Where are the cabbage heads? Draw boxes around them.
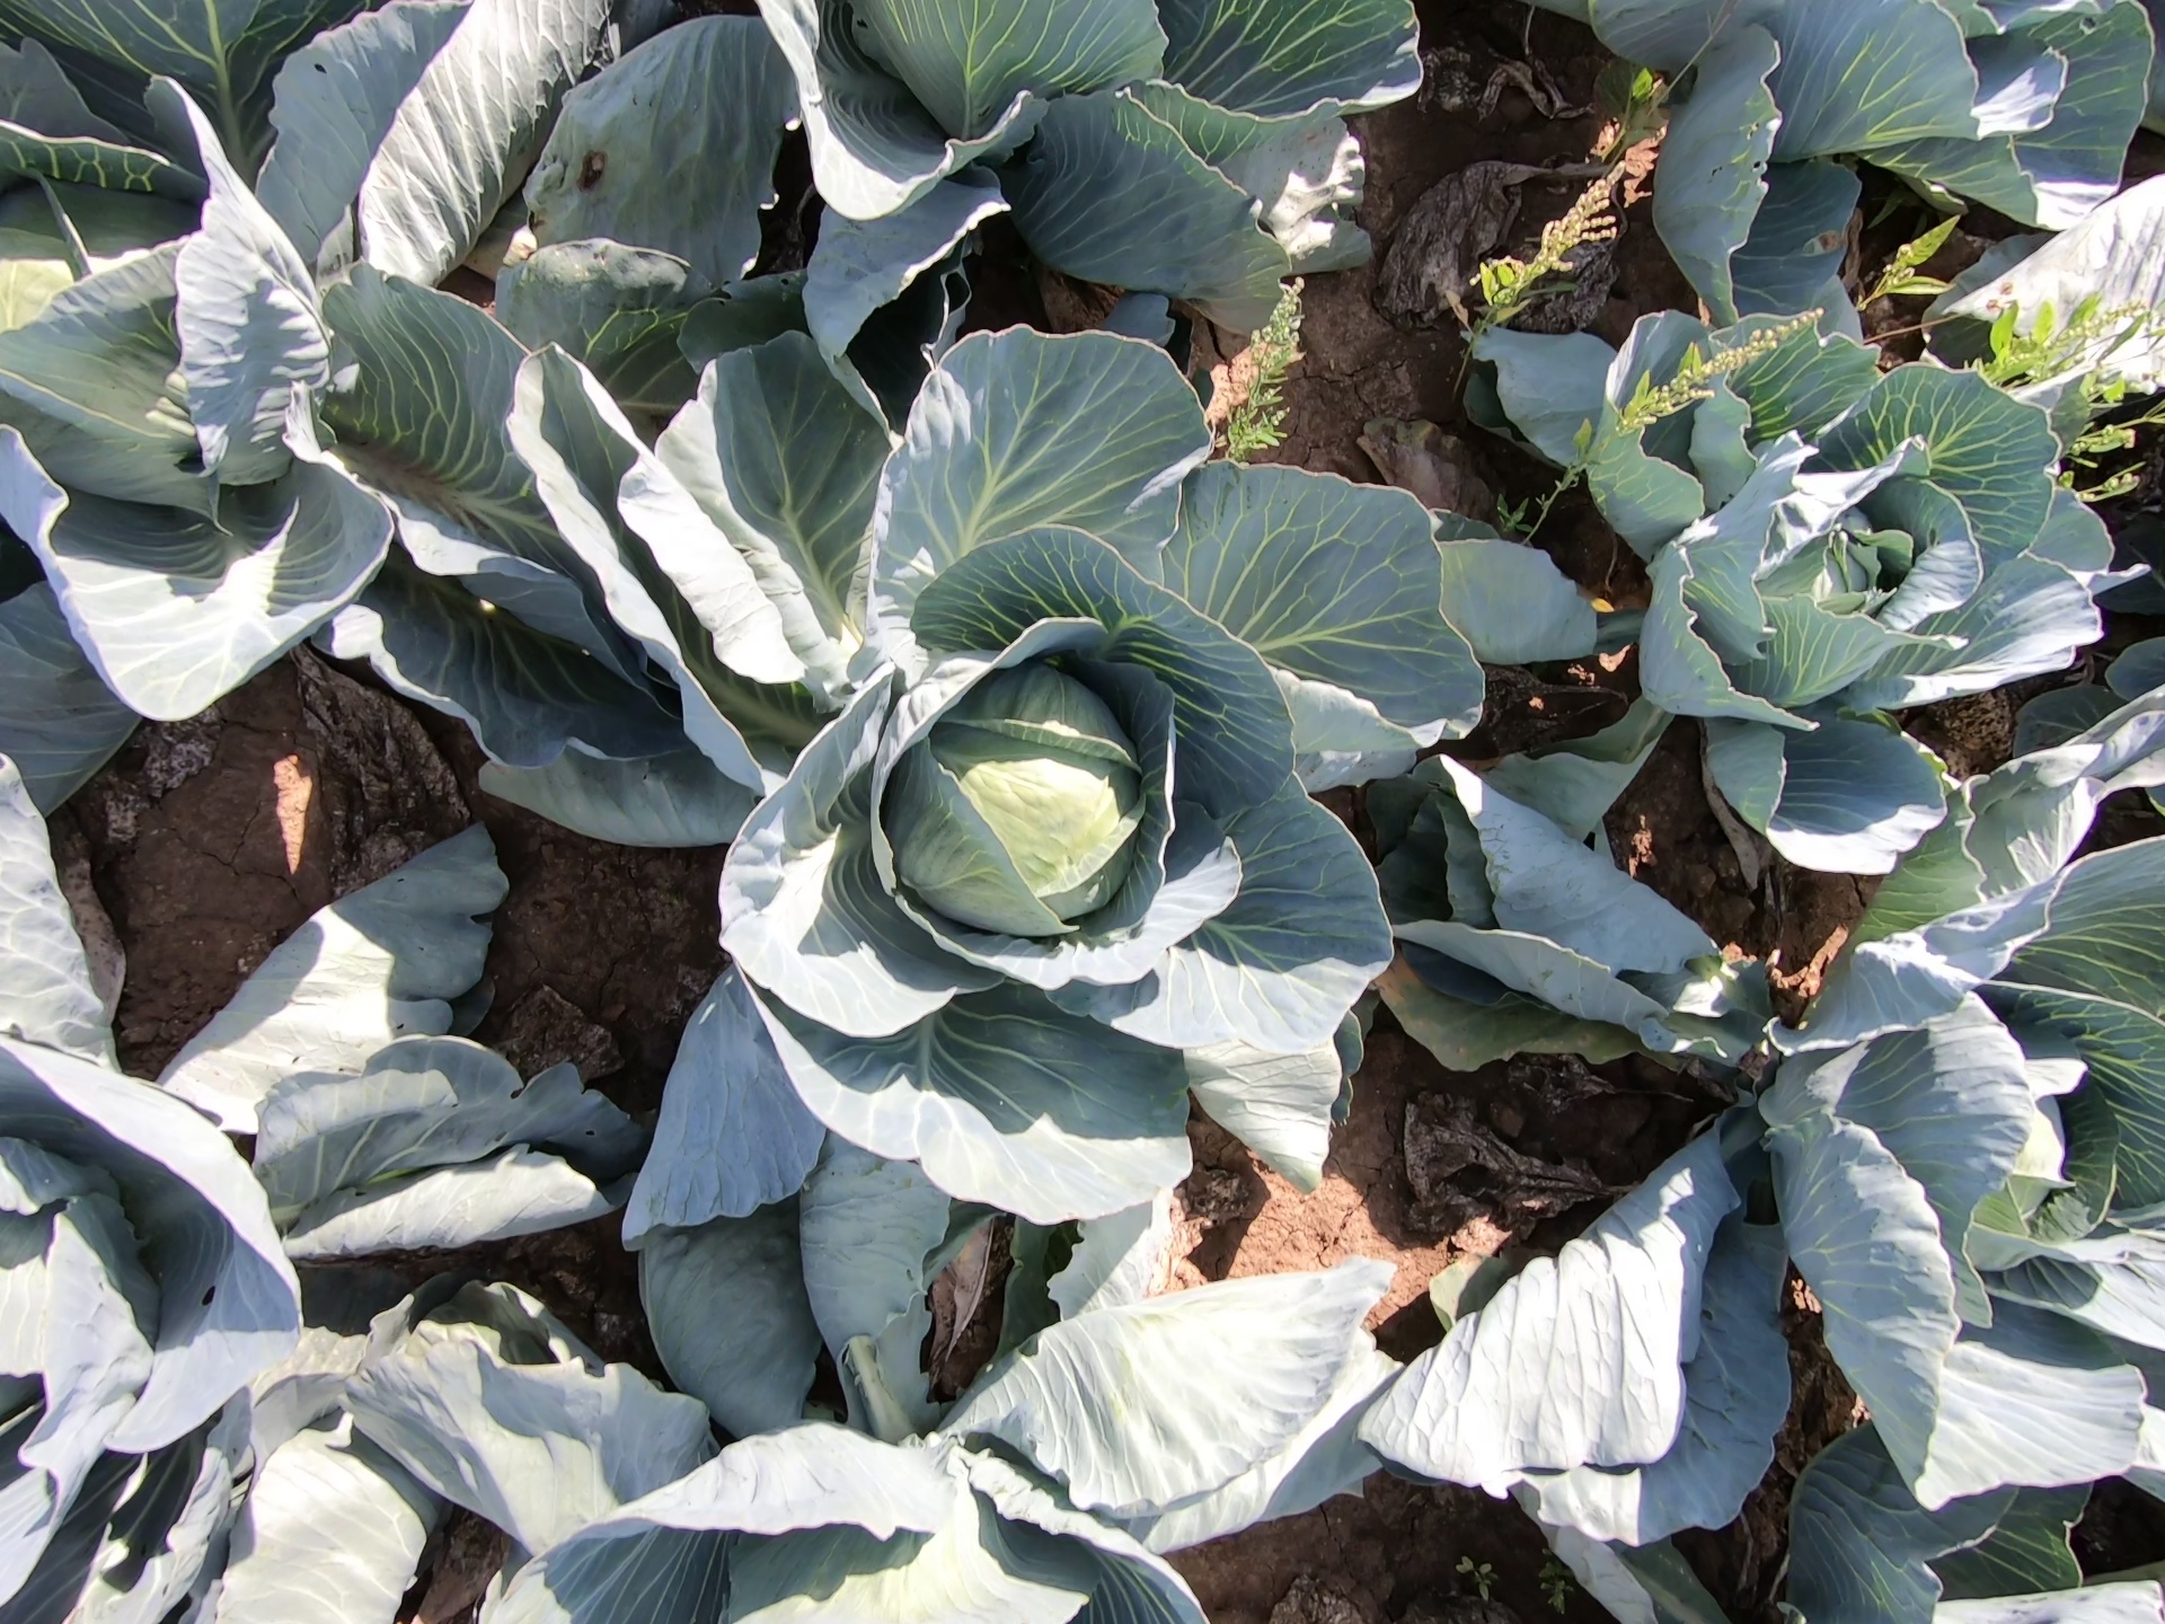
[900,665,1148,926]
[1864,1023,2073,1246]
[3,177,251,501]
[718,1458,1002,1621]
[1753,529,1873,663]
